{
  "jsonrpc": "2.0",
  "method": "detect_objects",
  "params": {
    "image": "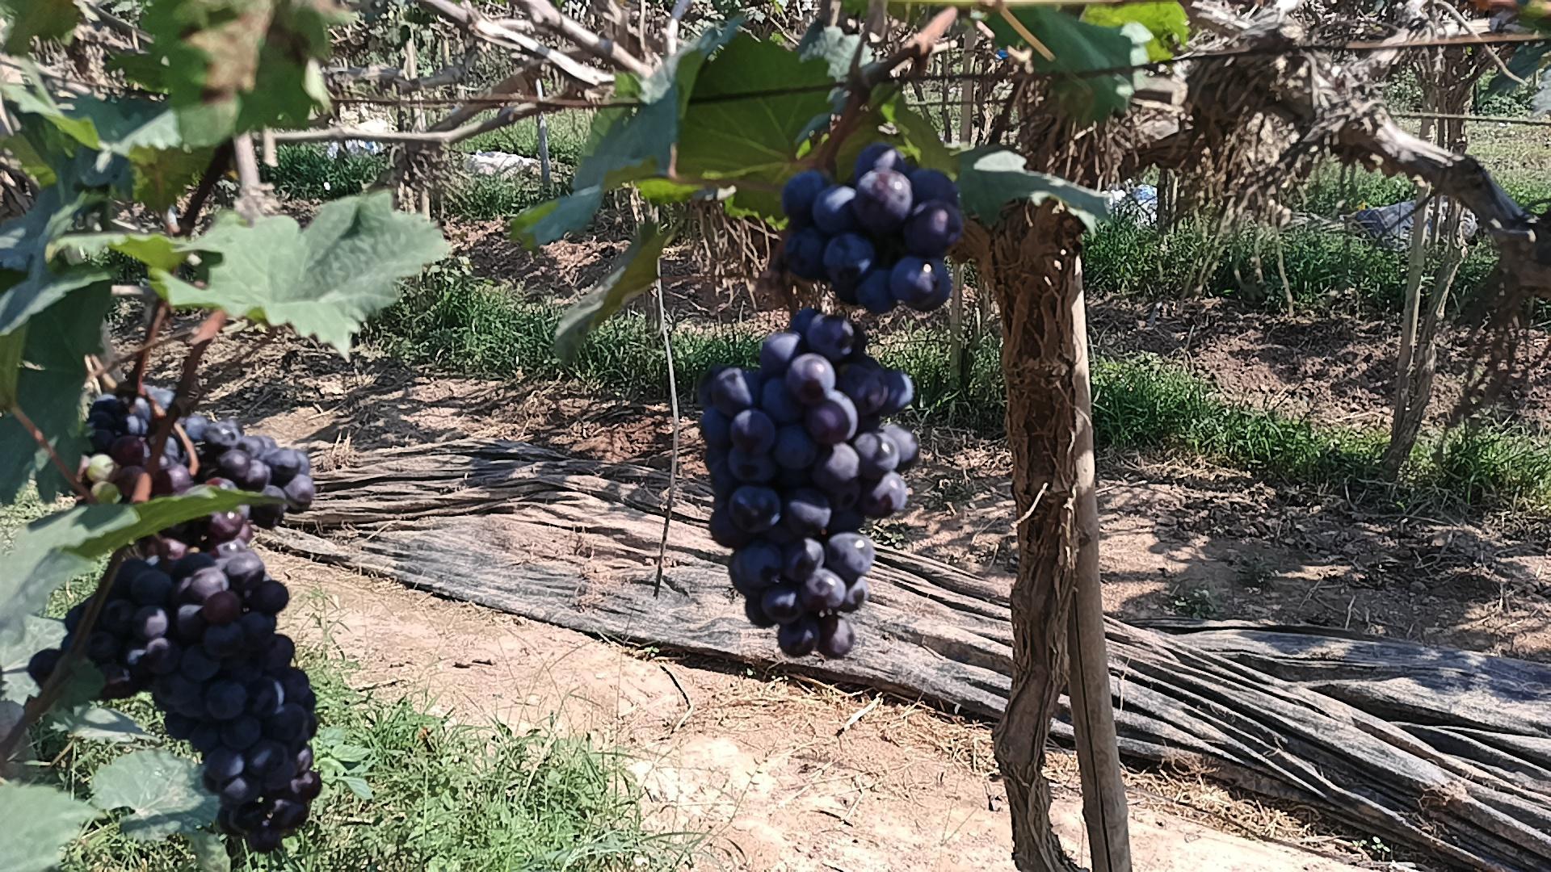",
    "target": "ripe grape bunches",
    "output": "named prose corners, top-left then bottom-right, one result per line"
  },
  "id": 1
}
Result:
top-left (780, 143), bottom-right (963, 312)
top-left (27, 386), bottom-right (322, 850)
top-left (700, 308), bottom-right (918, 656)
